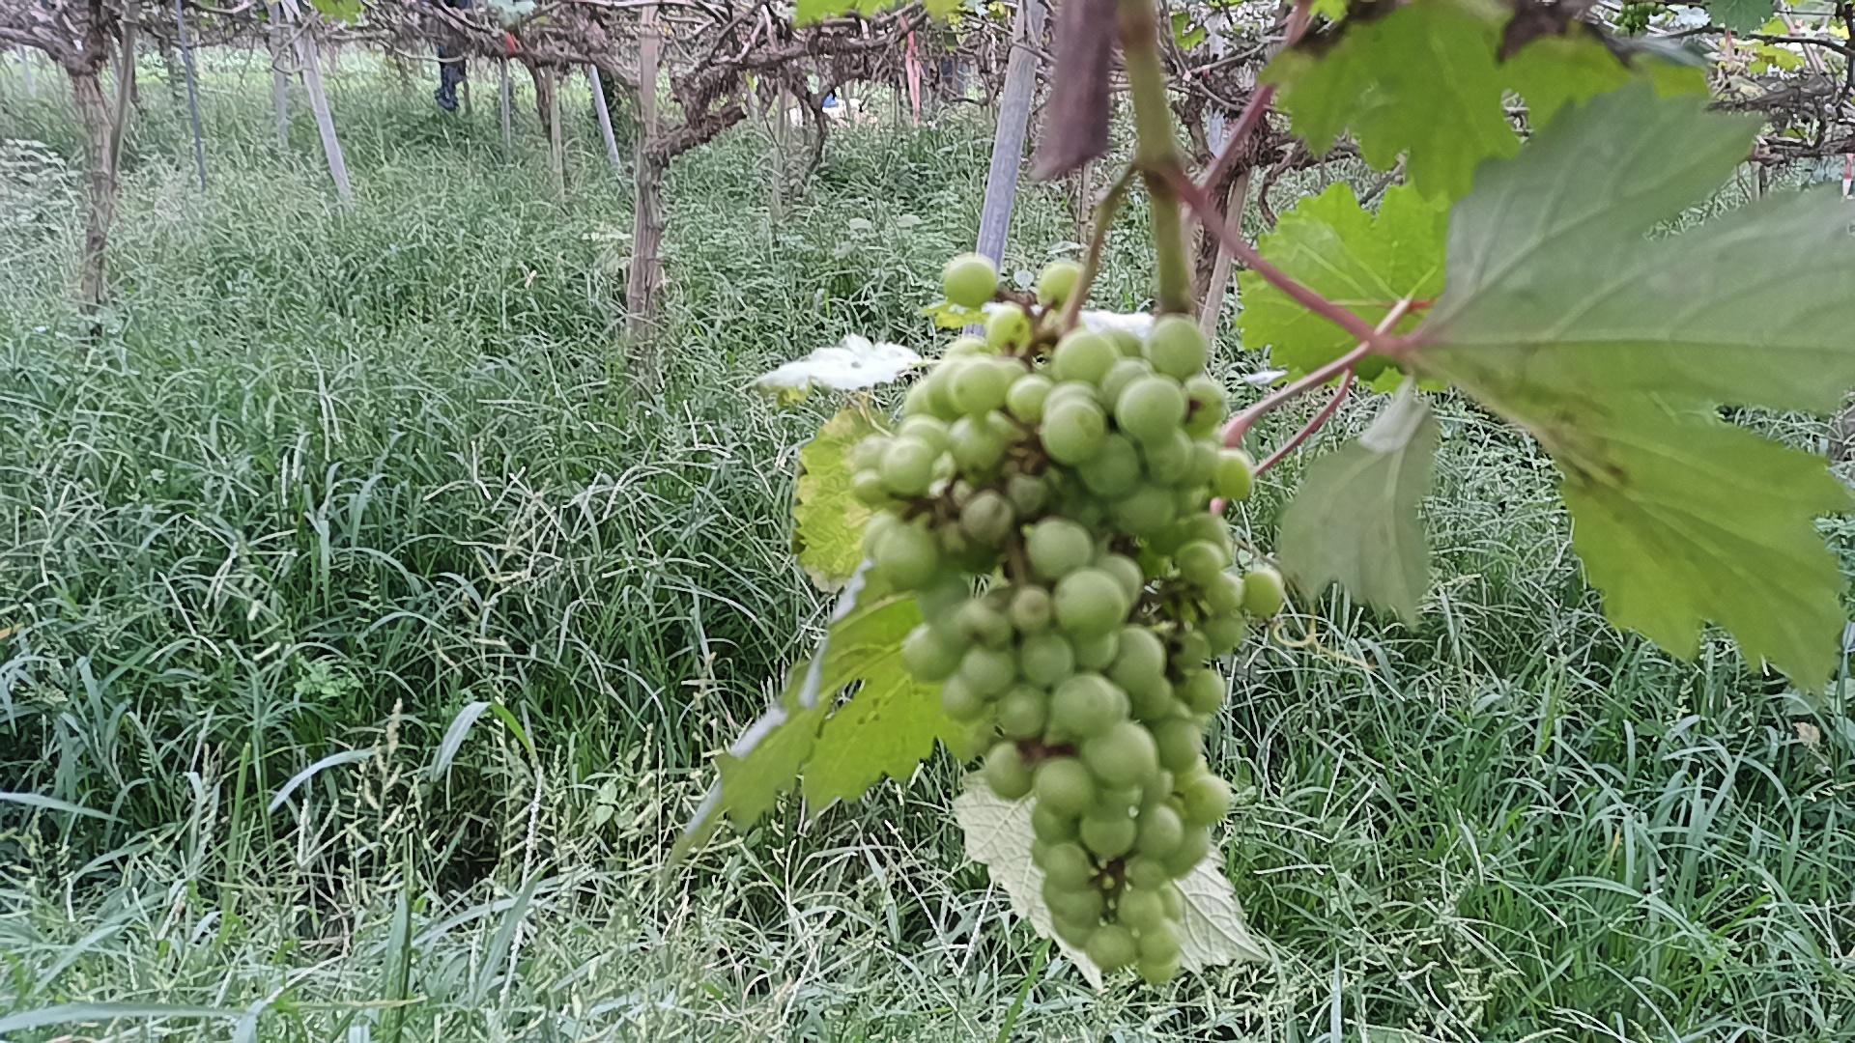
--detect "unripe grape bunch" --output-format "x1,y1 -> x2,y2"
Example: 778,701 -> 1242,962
848,252 -> 1283,984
